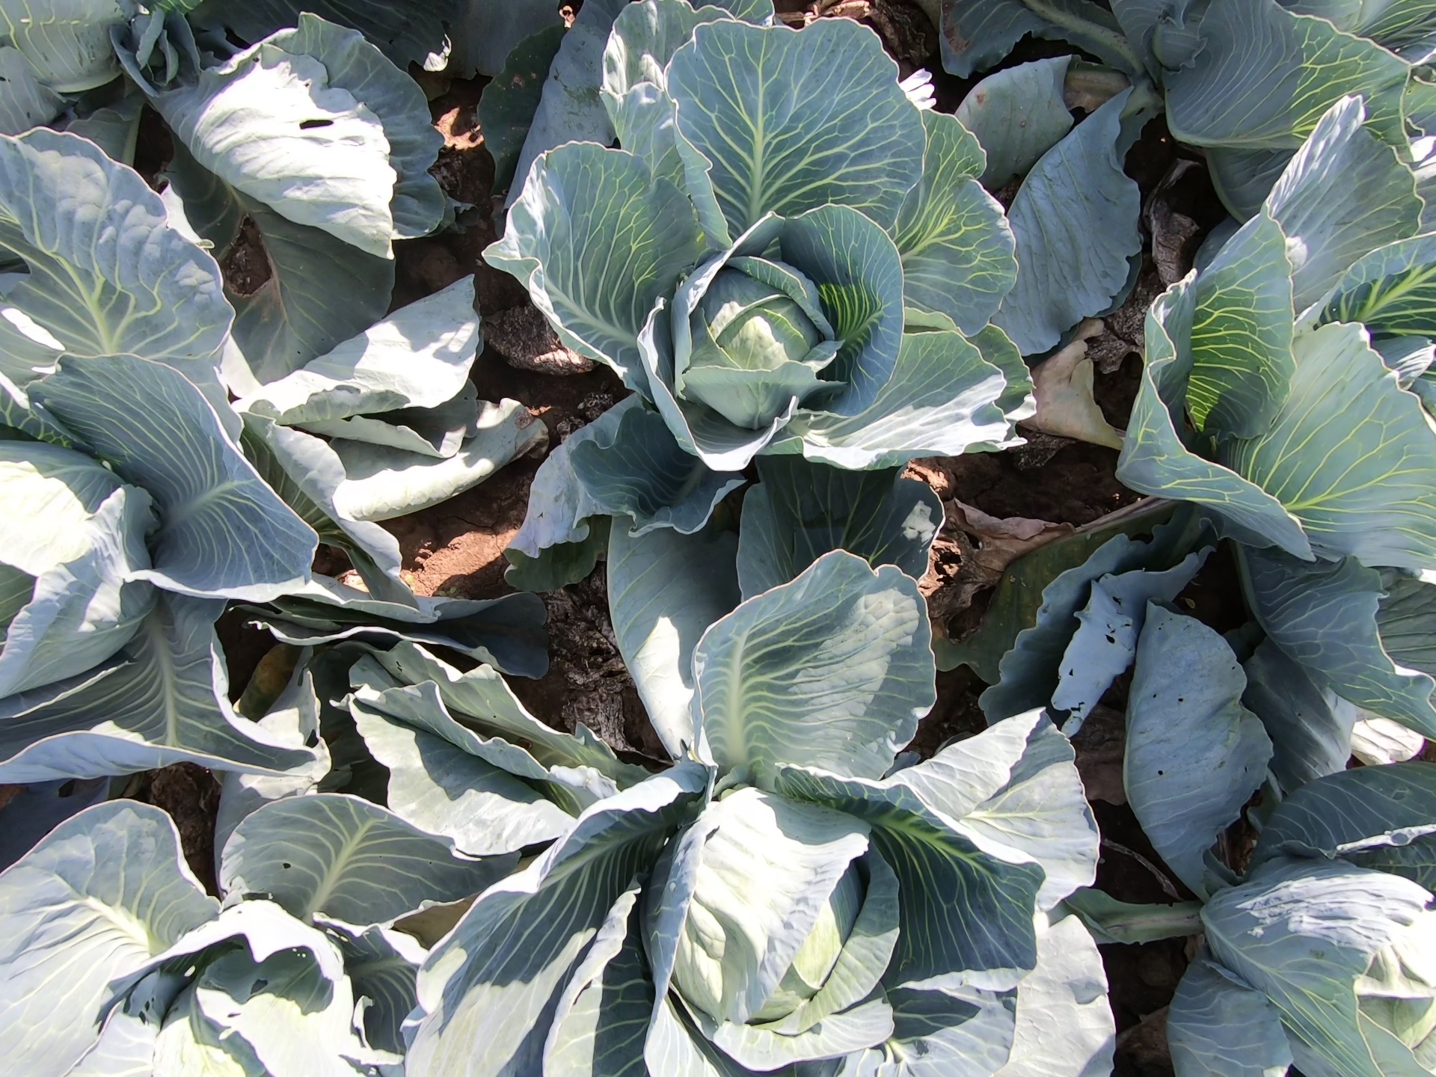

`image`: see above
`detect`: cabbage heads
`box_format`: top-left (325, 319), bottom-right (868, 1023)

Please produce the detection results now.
top-left (663, 798), bottom-right (865, 1018)
top-left (679, 263), bottom-right (823, 404)
top-left (2, 441), bottom-right (122, 630)
top-left (1274, 891), bottom-right (1434, 1059)
top-left (151, 957), bottom-right (325, 1076)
